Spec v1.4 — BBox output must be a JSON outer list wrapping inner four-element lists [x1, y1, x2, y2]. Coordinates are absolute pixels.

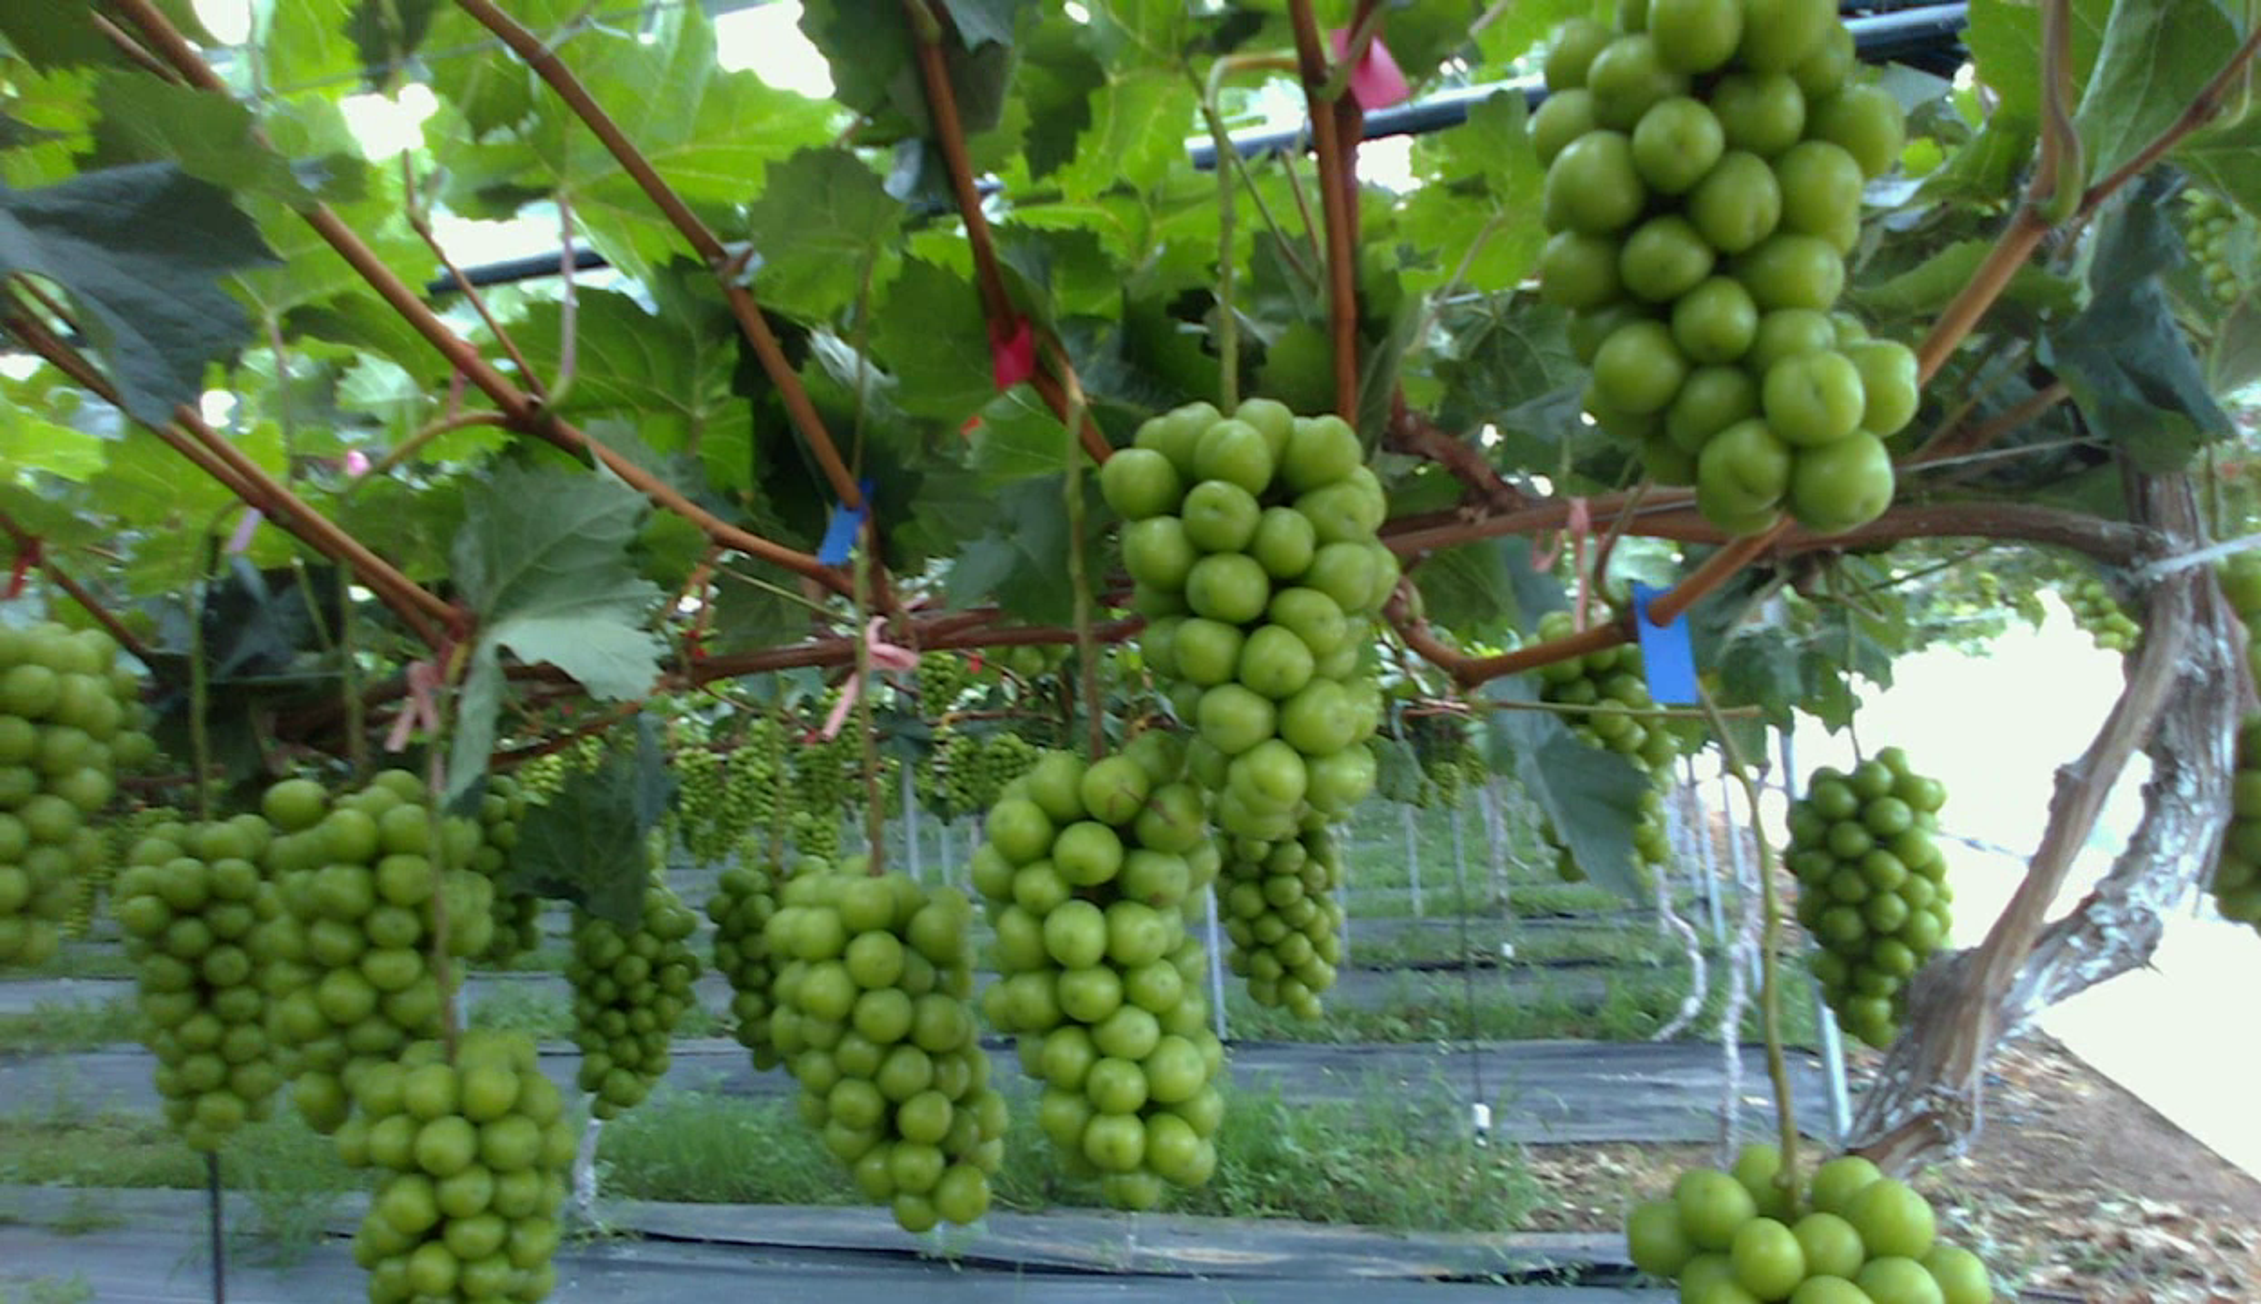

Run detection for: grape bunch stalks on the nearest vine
[[187, 496, 245, 819], [337, 560, 370, 786], [1203, 53, 1297, 417], [433, 884, 458, 1065], [855, 554, 884, 875], [1699, 683, 1801, 1217], [1040, 324, 1103, 759]]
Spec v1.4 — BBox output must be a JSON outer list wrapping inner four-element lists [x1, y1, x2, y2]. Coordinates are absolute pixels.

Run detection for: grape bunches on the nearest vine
[[337, 1029, 571, 1302], [1529, 0, 1922, 532], [265, 770, 440, 1134], [971, 730, 1225, 1210], [765, 853, 1009, 1235], [120, 817, 281, 1150], [1623, 1145, 1991, 1302], [1098, 400, 1399, 837]]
